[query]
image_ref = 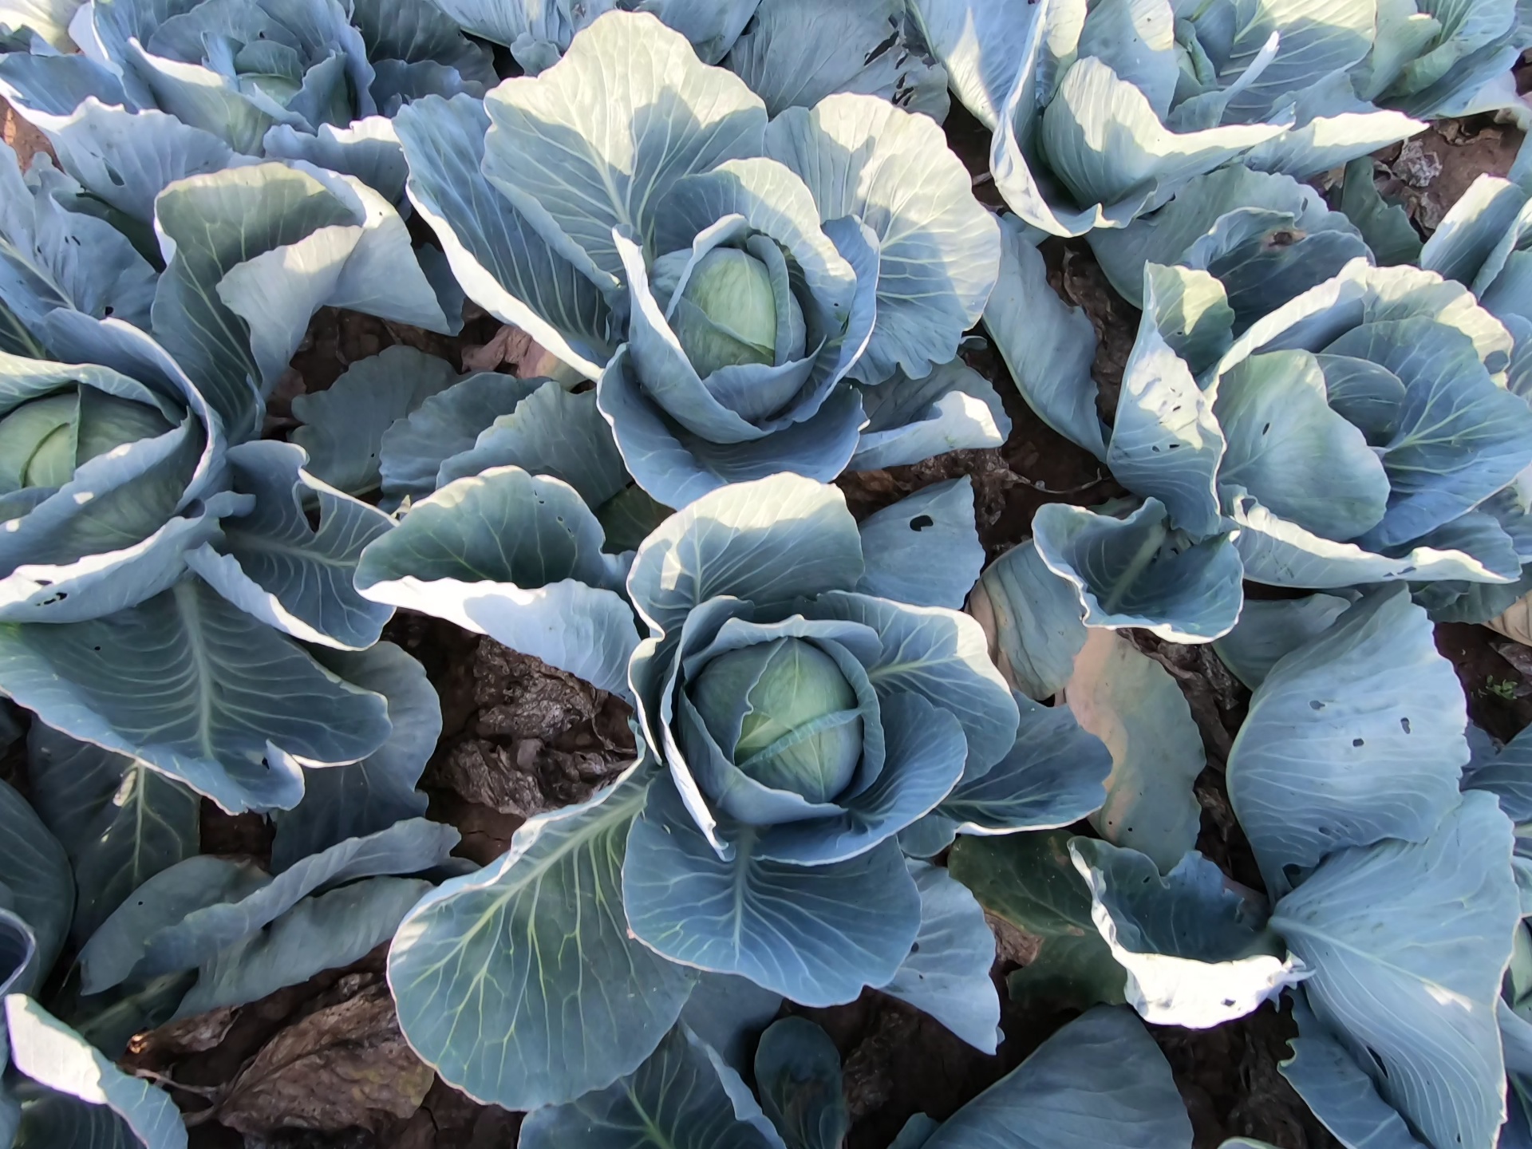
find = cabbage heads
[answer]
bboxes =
[190,65,314,169]
[2,385,180,584]
[1381,851,1530,1040]
[693,636,867,814]
[1114,40,1202,128]
[651,243,802,408]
